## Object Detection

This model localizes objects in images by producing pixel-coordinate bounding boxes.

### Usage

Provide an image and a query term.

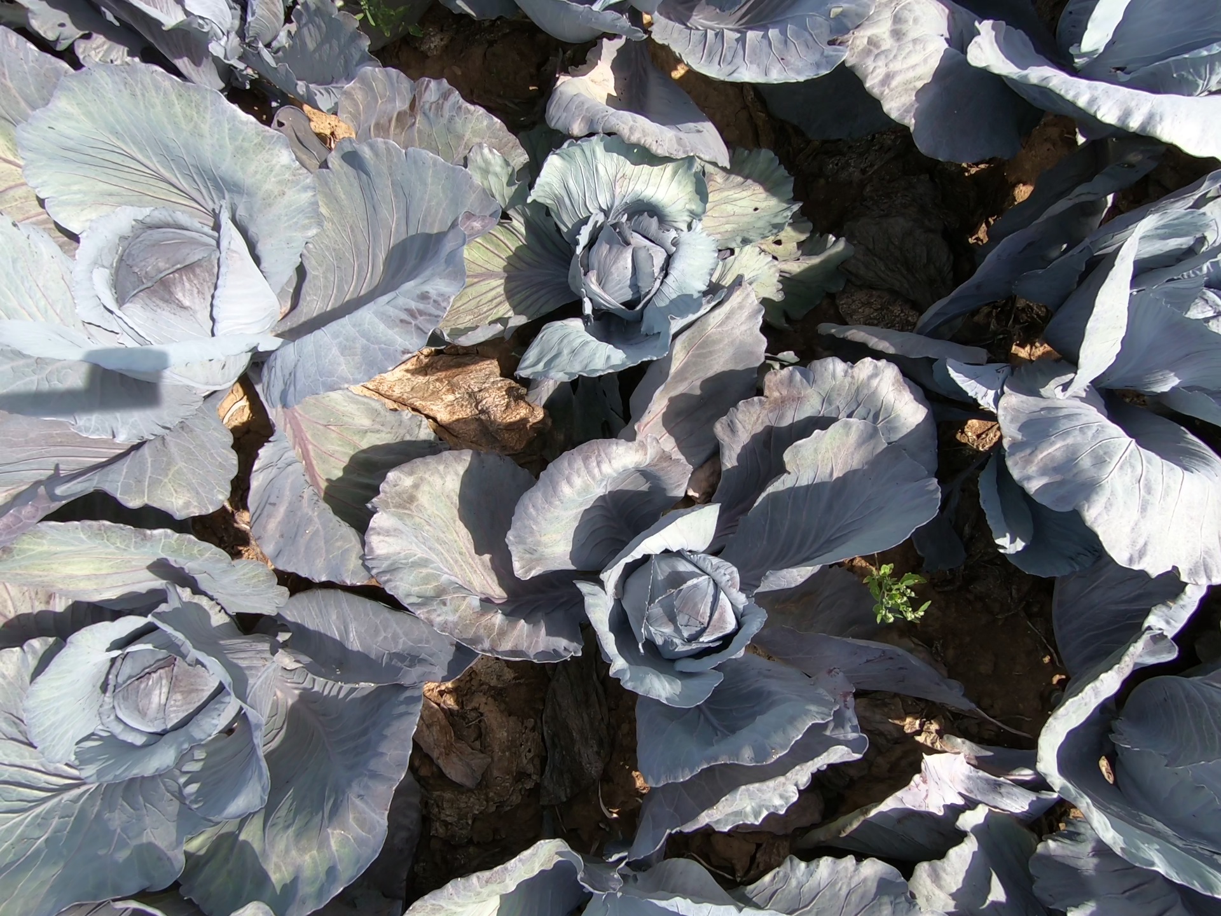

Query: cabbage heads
[1129,704,1218,836]
[623,553,738,657]
[585,225,670,305]
[106,624,234,737]
[1097,283,1217,394]
[113,223,261,364]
